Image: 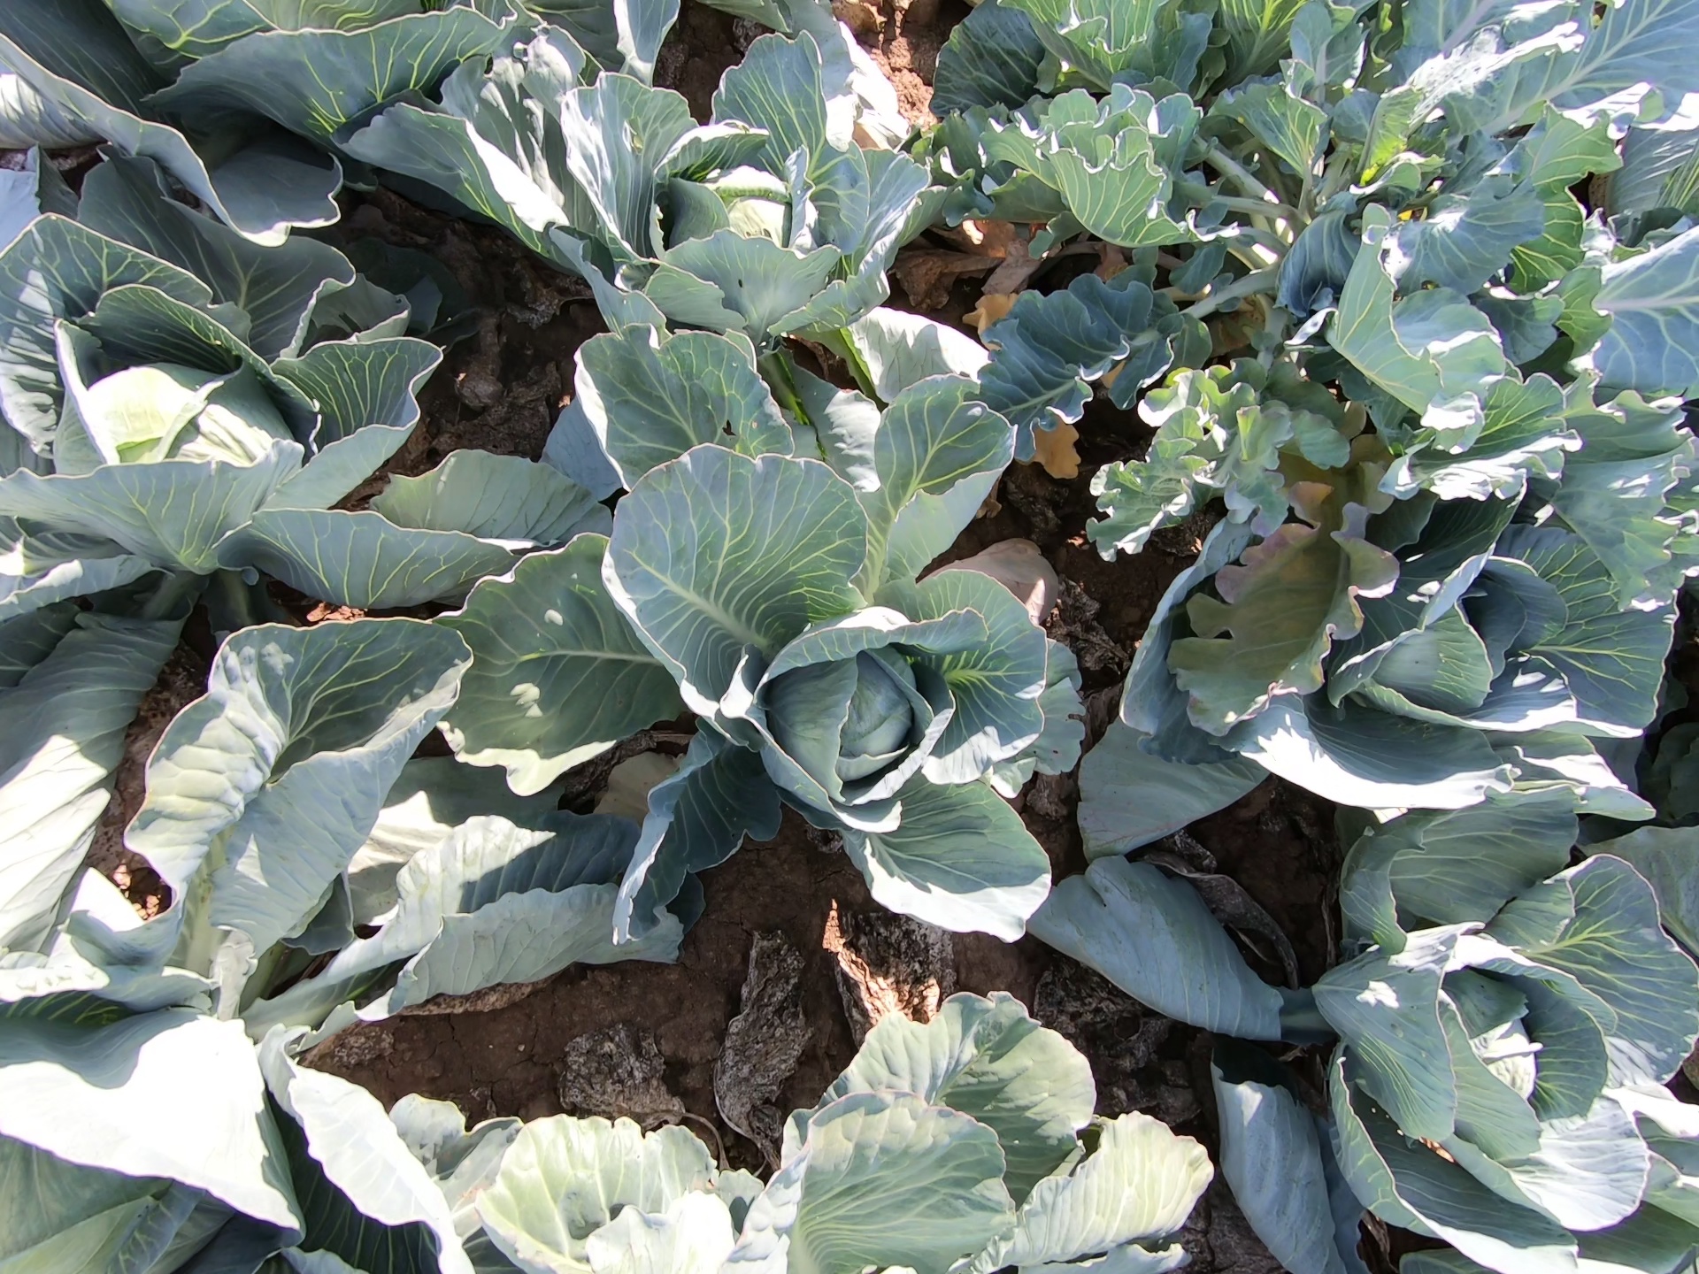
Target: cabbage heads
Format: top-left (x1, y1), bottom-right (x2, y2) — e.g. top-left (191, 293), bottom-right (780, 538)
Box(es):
top-left (692, 165), bottom-right (812, 296)
top-left (2, 1055), bottom-right (251, 1272)
top-left (792, 632), bottom-right (914, 778)
top-left (50, 364), bottom-right (304, 545)
top-left (1388, 959), bottom-right (1537, 1117)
